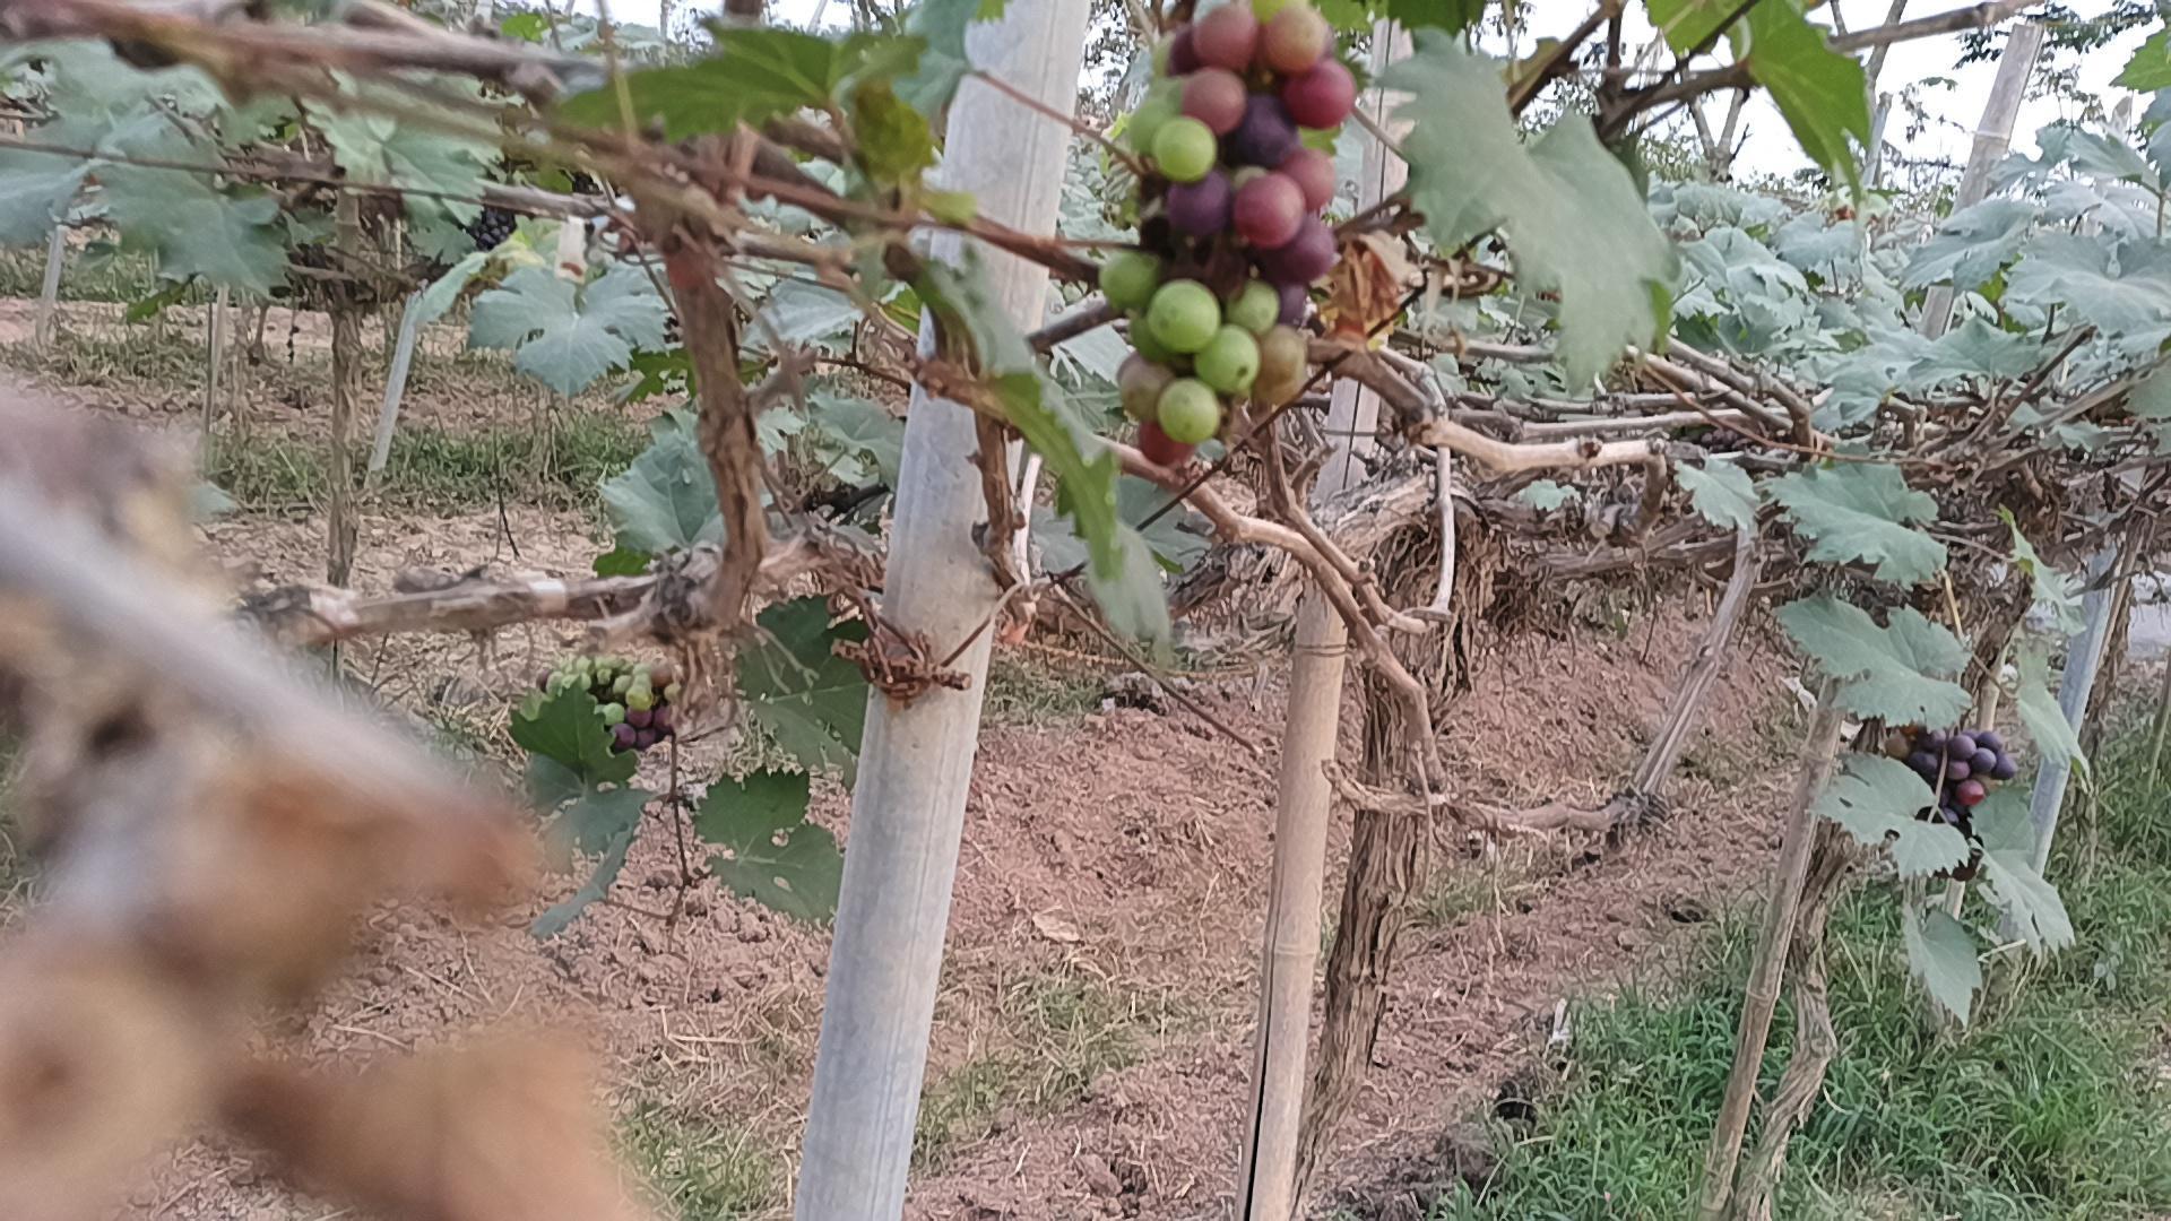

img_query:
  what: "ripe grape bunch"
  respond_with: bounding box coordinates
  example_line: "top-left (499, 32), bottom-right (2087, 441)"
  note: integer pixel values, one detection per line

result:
top-left (1885, 725), bottom-right (2017, 883)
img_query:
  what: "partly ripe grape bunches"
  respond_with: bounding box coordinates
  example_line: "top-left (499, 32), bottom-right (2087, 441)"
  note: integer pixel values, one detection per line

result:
top-left (513, 657), bottom-right (677, 755)
top-left (1101, 0), bottom-right (1356, 464)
